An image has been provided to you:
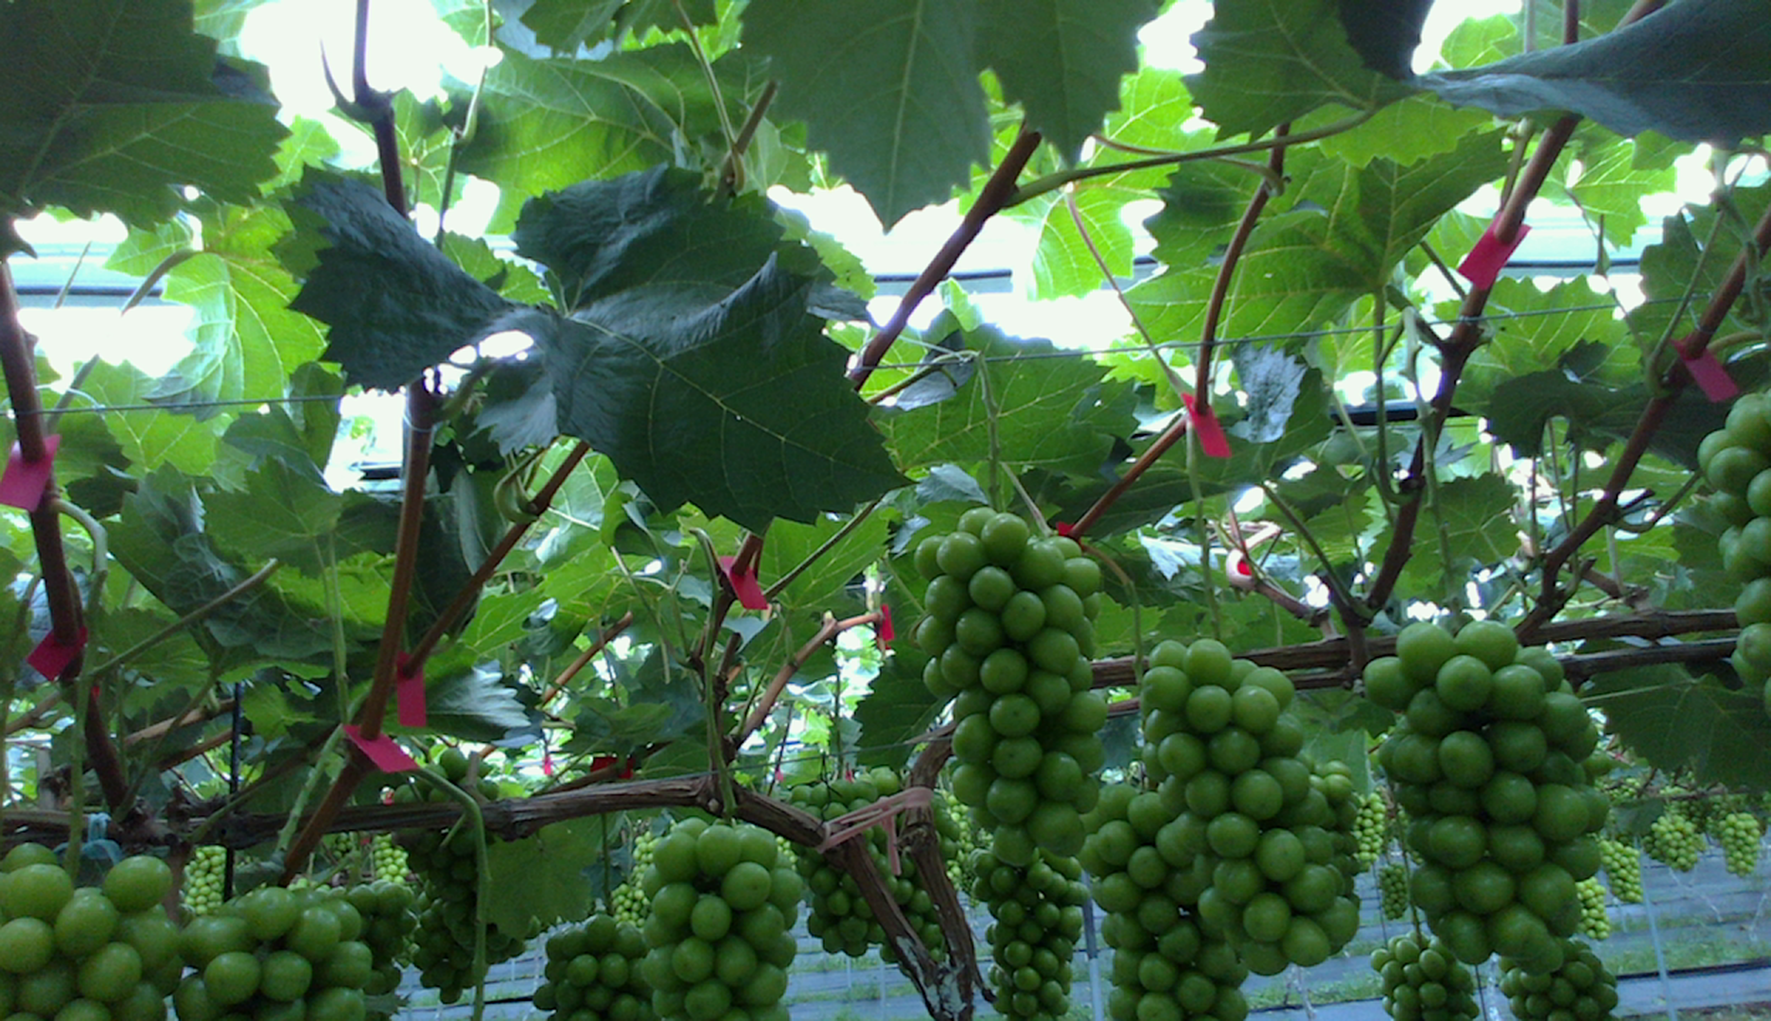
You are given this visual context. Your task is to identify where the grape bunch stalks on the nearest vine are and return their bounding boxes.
[1398,306,1464,634]
[935,350,1003,509]
[1148,781,1158,793]
[602,815,612,916]
[1186,417,1220,638]
[268,682,372,885]
[58,498,108,881]
[693,529,739,824]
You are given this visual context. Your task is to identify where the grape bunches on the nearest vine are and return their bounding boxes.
[640,818,805,1020]
[914,505,1108,866]
[1,844,179,1020]
[1140,640,1362,976]
[1699,396,1770,701]
[175,886,369,1020]
[1361,618,1606,970]
[1078,783,1247,1020]
[535,917,656,1020]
